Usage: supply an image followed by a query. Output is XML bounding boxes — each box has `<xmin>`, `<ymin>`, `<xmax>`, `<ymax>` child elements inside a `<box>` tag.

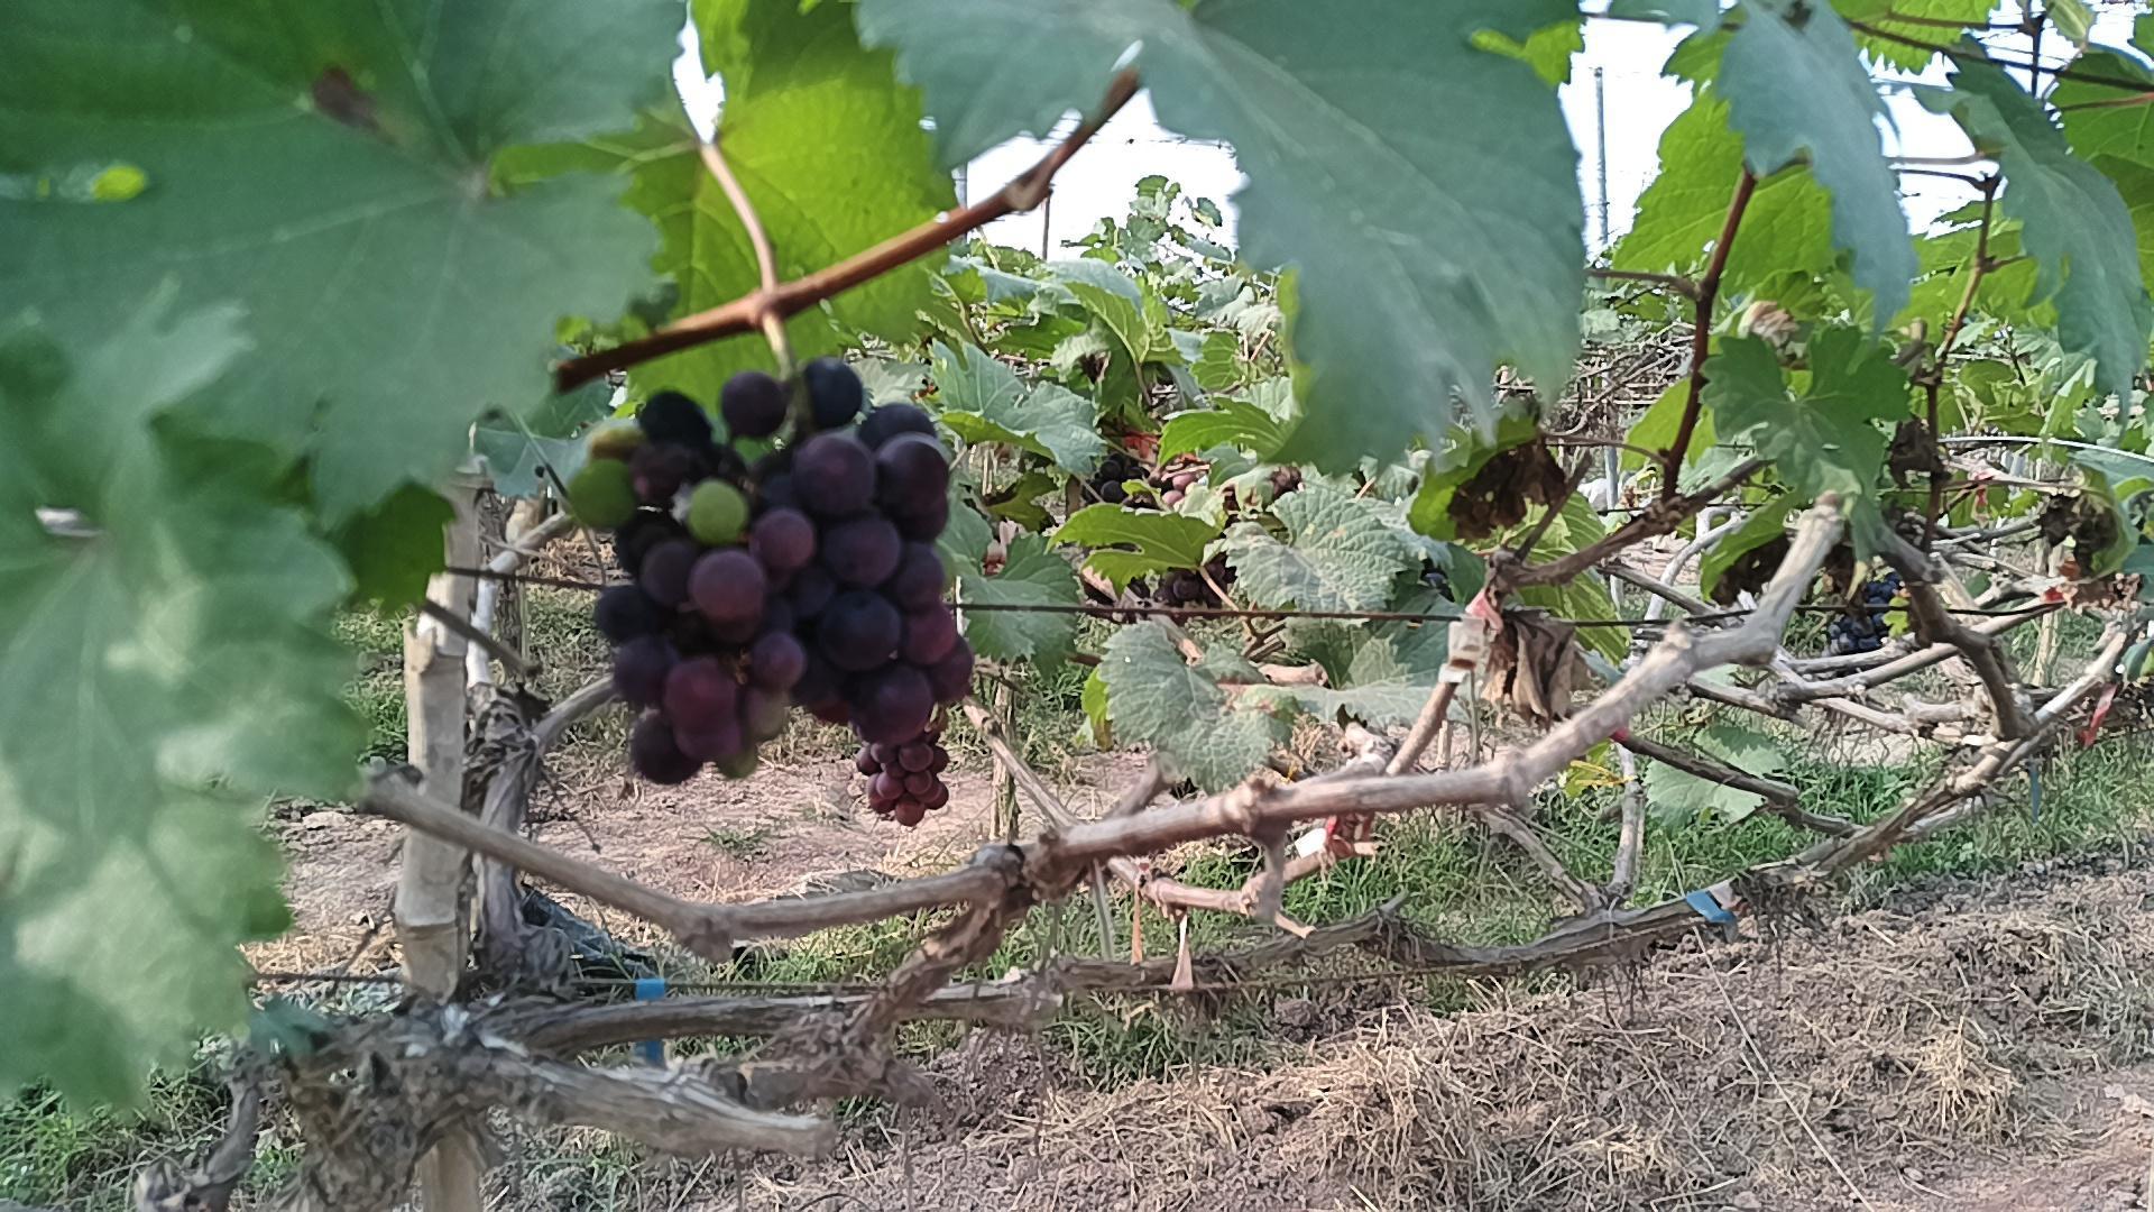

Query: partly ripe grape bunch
<box><xmin>564</xmin><ymin>357</ymin><xmax>973</xmax><ymax>783</ymax></box>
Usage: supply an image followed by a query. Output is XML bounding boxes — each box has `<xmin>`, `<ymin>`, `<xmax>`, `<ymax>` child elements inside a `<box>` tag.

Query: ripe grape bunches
<box><xmin>856</xmin><ymin>725</ymin><xmax>950</xmax><ymax>827</ymax></box>
<box><xmin>1825</xmin><ymin>568</ymin><xmax>1899</xmax><ymax>658</ymax></box>
<box><xmin>1079</xmin><ymin>453</ymin><xmax>1300</xmax><ymax>607</ymax></box>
